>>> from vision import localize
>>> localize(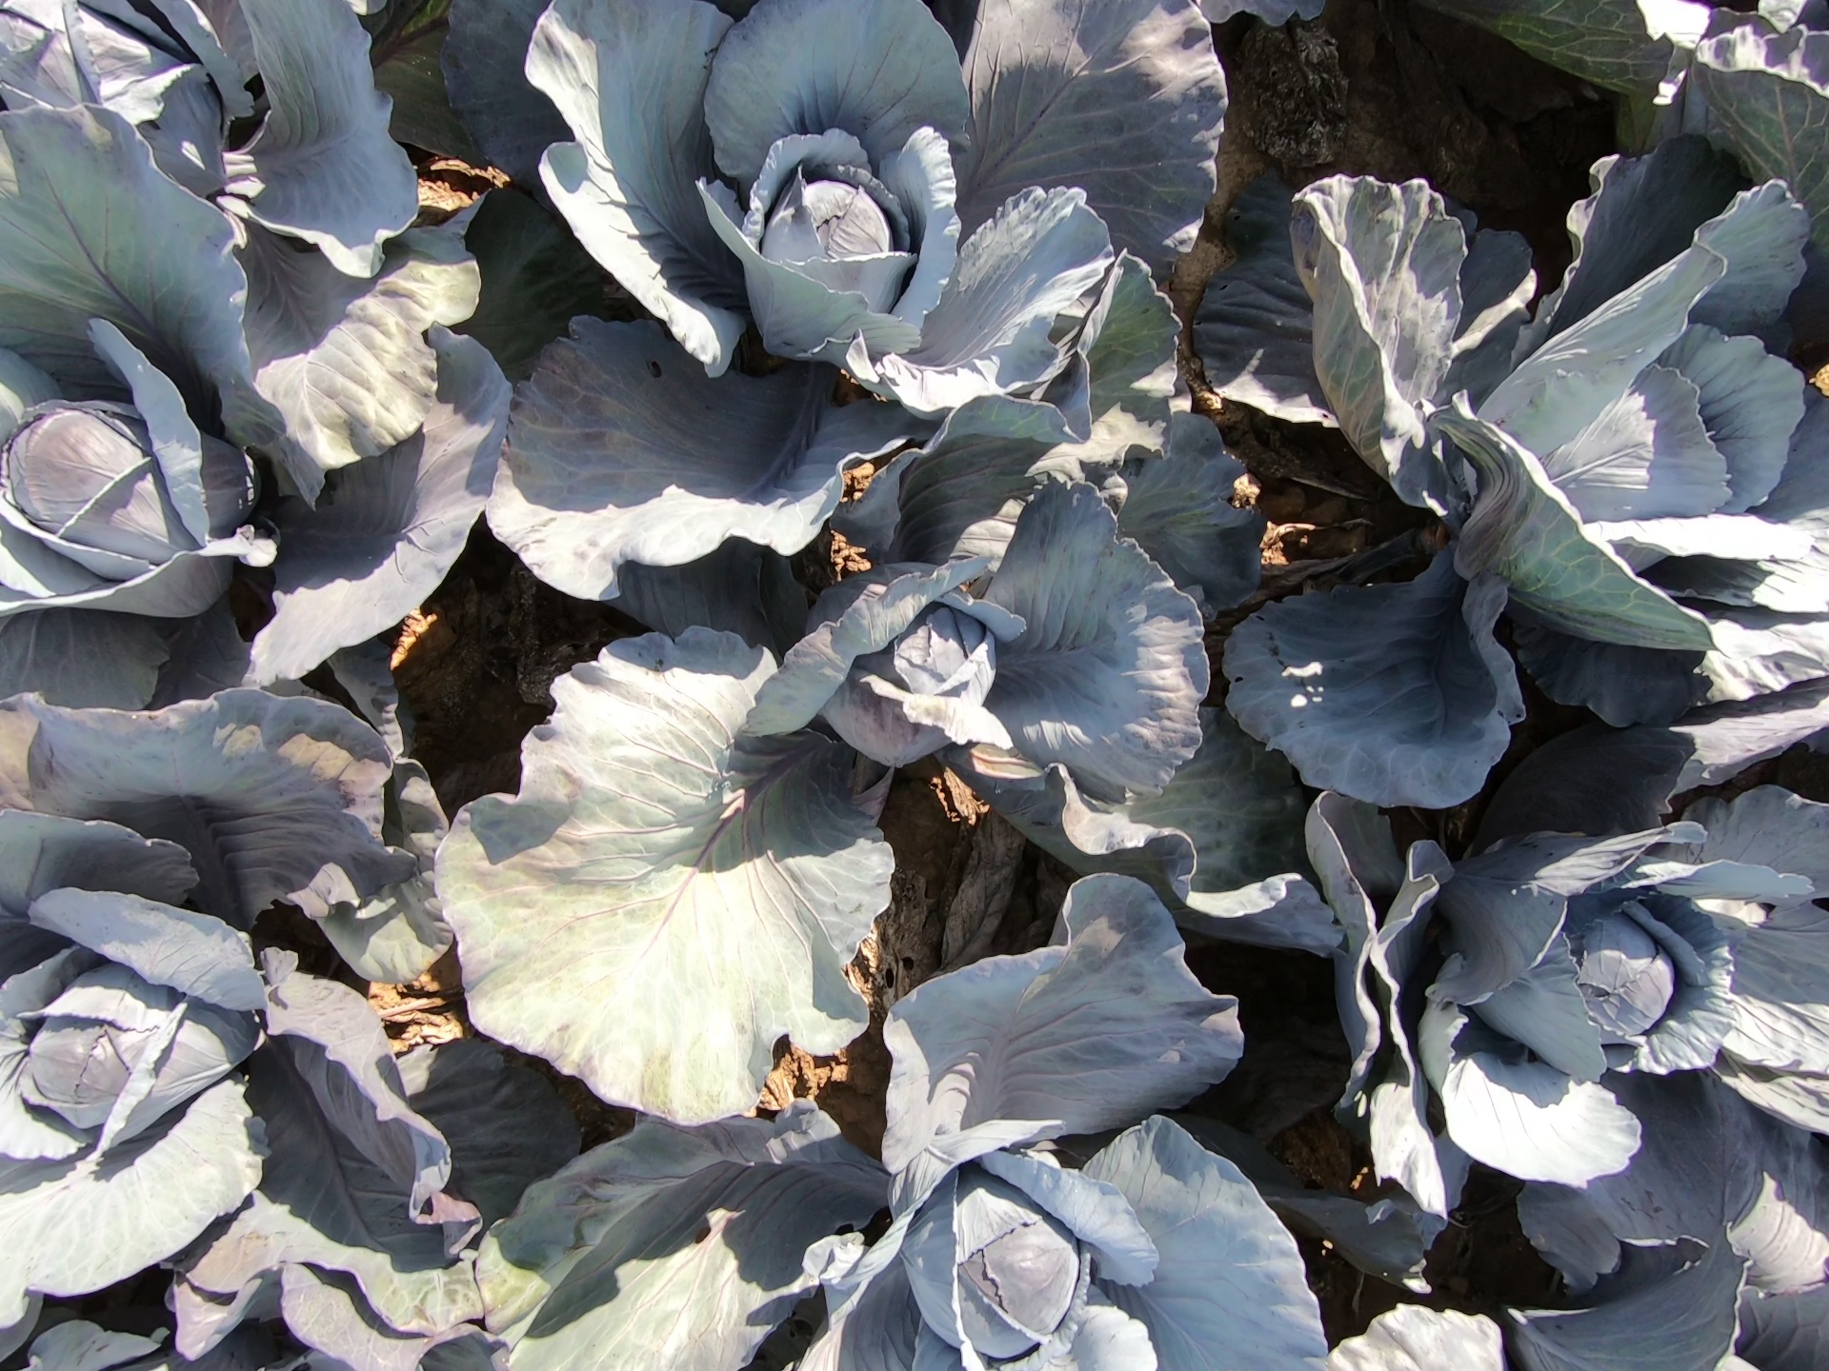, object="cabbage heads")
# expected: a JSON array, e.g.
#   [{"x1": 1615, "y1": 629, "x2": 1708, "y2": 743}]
[
  {"x1": 923, "y1": 1168, "x2": 1081, "y2": 1358},
  {"x1": 756, "y1": 176, "x2": 892, "y2": 331},
  {"x1": 25, "y1": 971, "x2": 225, "y2": 1123},
  {"x1": 826, "y1": 570, "x2": 996, "y2": 755},
  {"x1": 2, "y1": 2, "x2": 138, "y2": 136},
  {"x1": 1511, "y1": 885, "x2": 1671, "y2": 1038},
  {"x1": 8, "y1": 401, "x2": 211, "y2": 570},
  {"x1": 1499, "y1": 383, "x2": 1686, "y2": 560}
]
